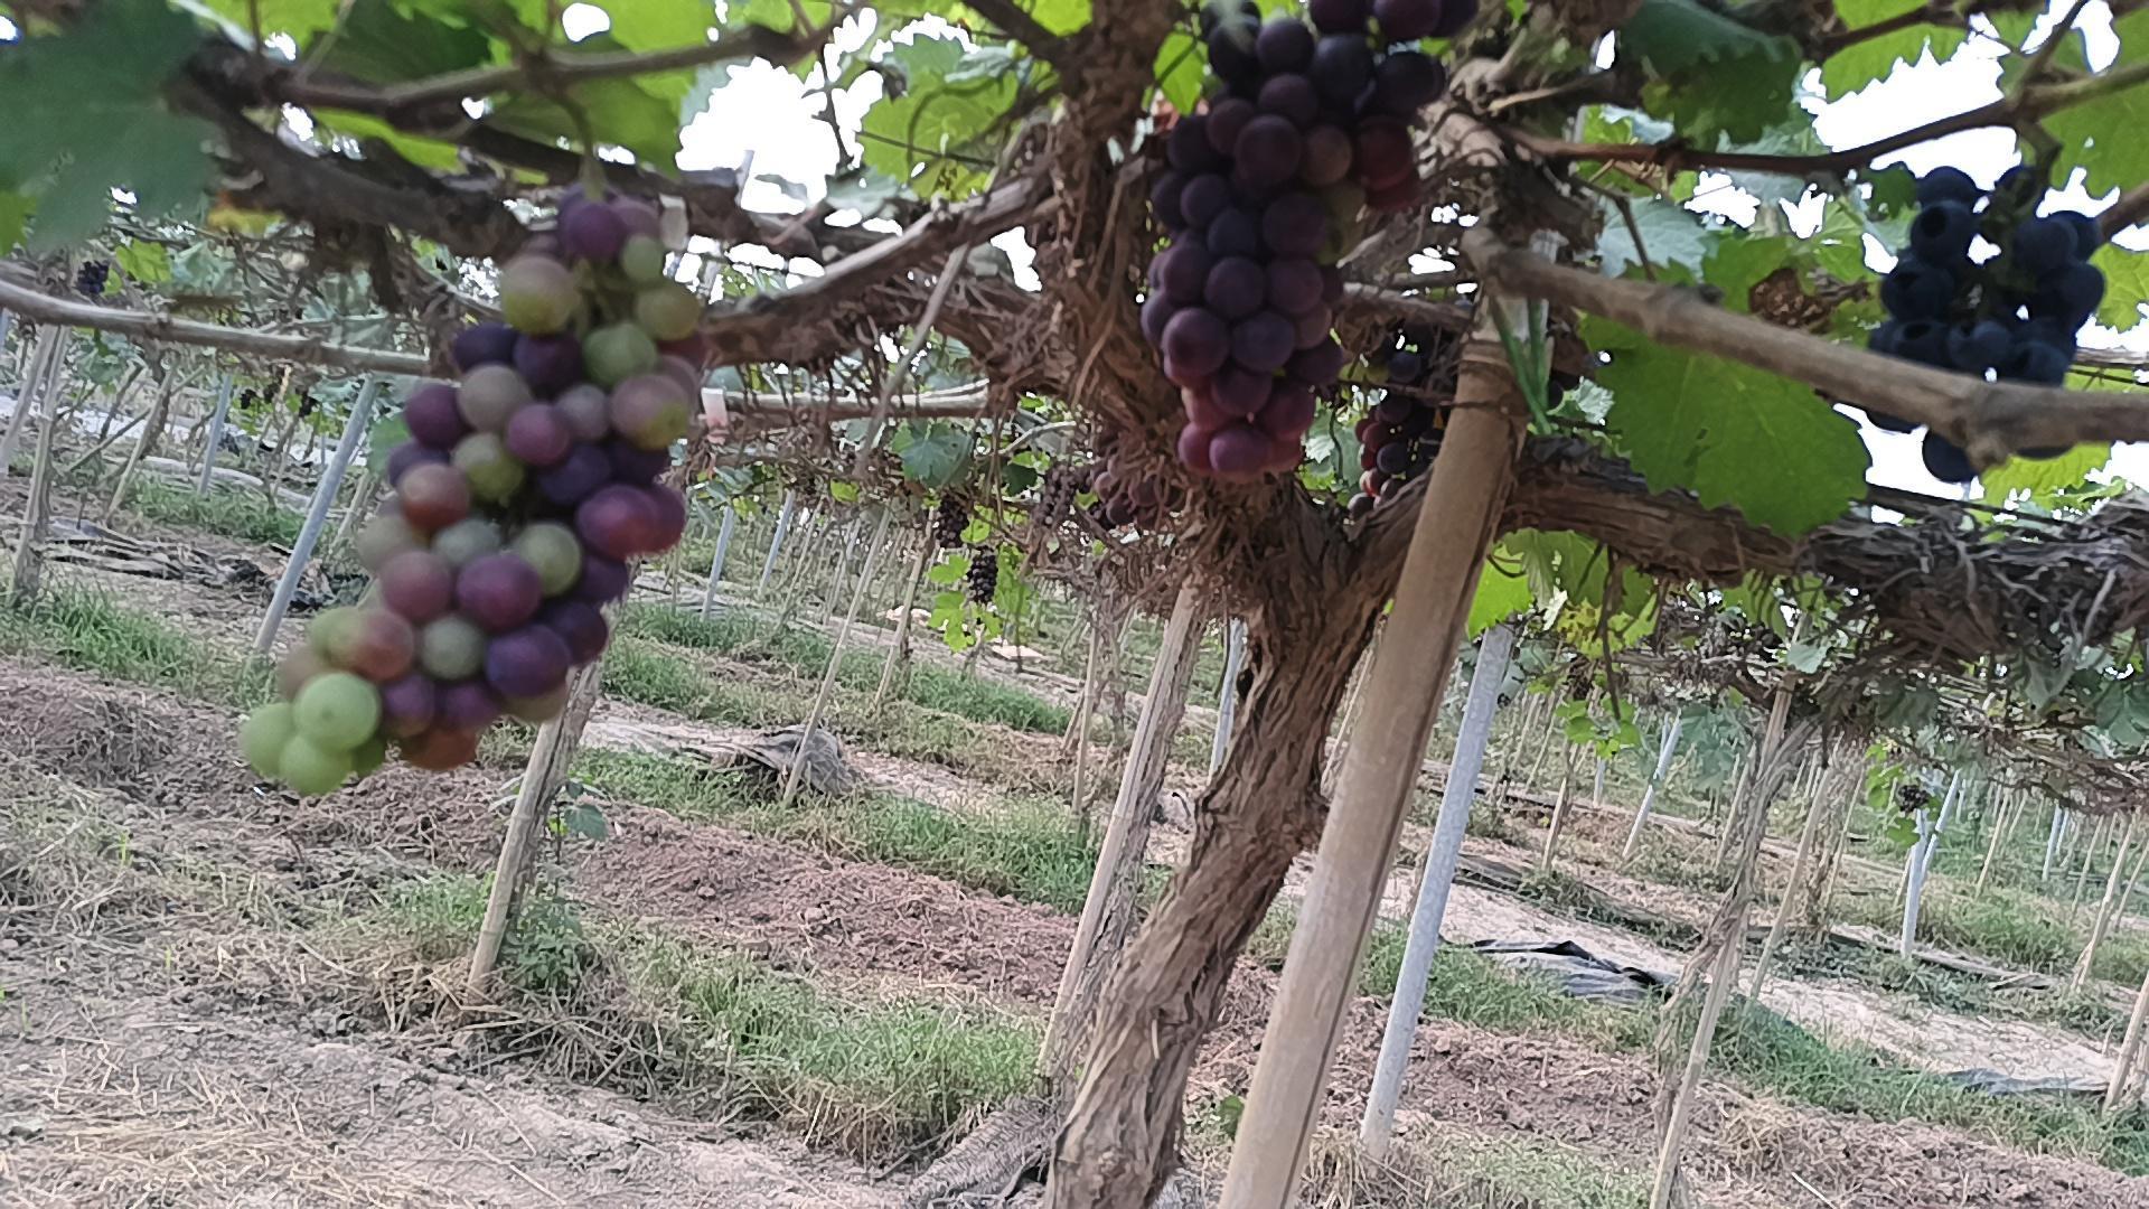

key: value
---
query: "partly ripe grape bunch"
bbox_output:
[241,194,705,793]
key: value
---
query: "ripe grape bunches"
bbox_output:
[1866,167,2104,485]
[933,493,969,549]
[967,543,998,606]
[1141,0,1476,480]
[1346,320,1437,519]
